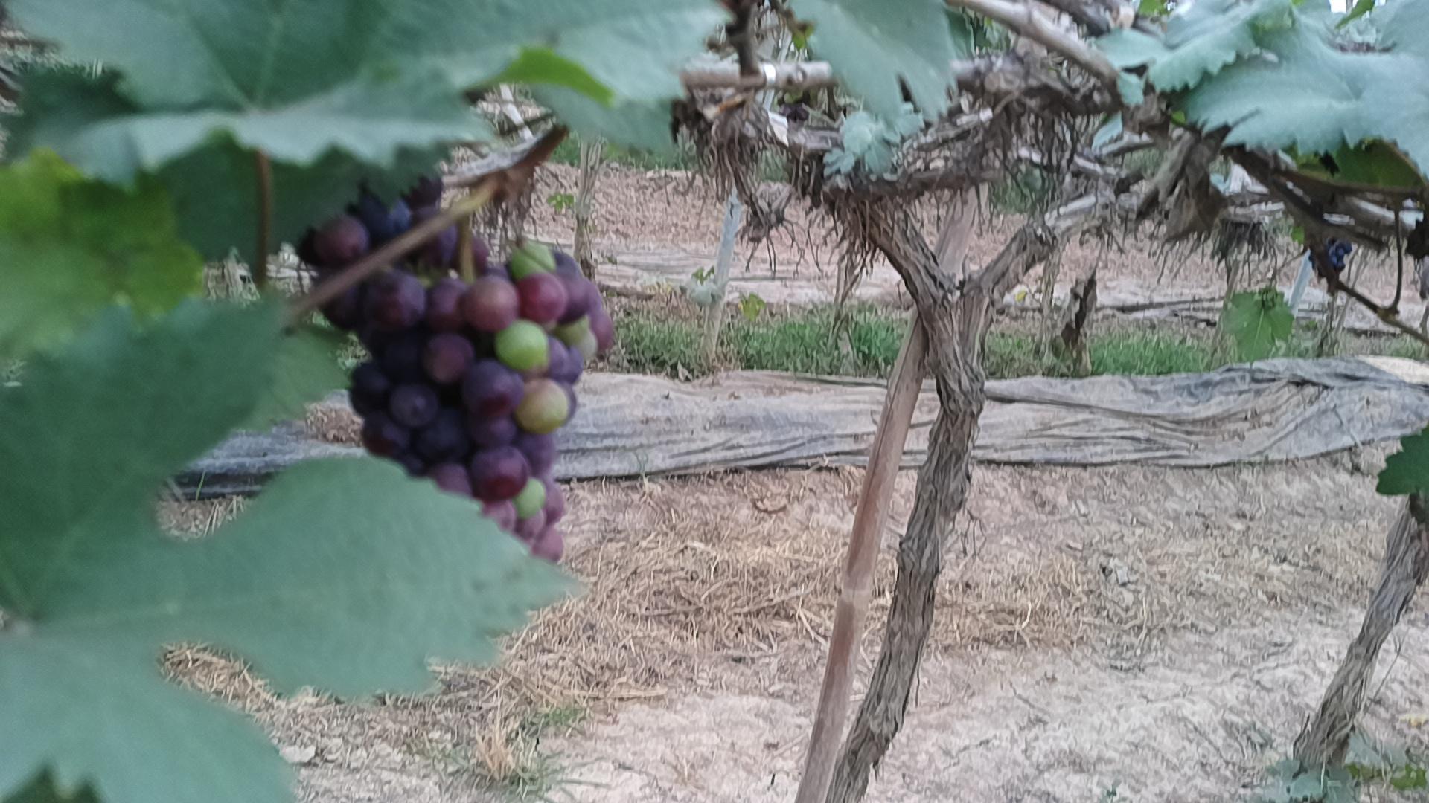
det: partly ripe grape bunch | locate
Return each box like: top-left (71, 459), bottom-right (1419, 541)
top-left (294, 171), bottom-right (613, 561)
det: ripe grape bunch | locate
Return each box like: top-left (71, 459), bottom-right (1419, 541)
top-left (1308, 238), bottom-right (1352, 288)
